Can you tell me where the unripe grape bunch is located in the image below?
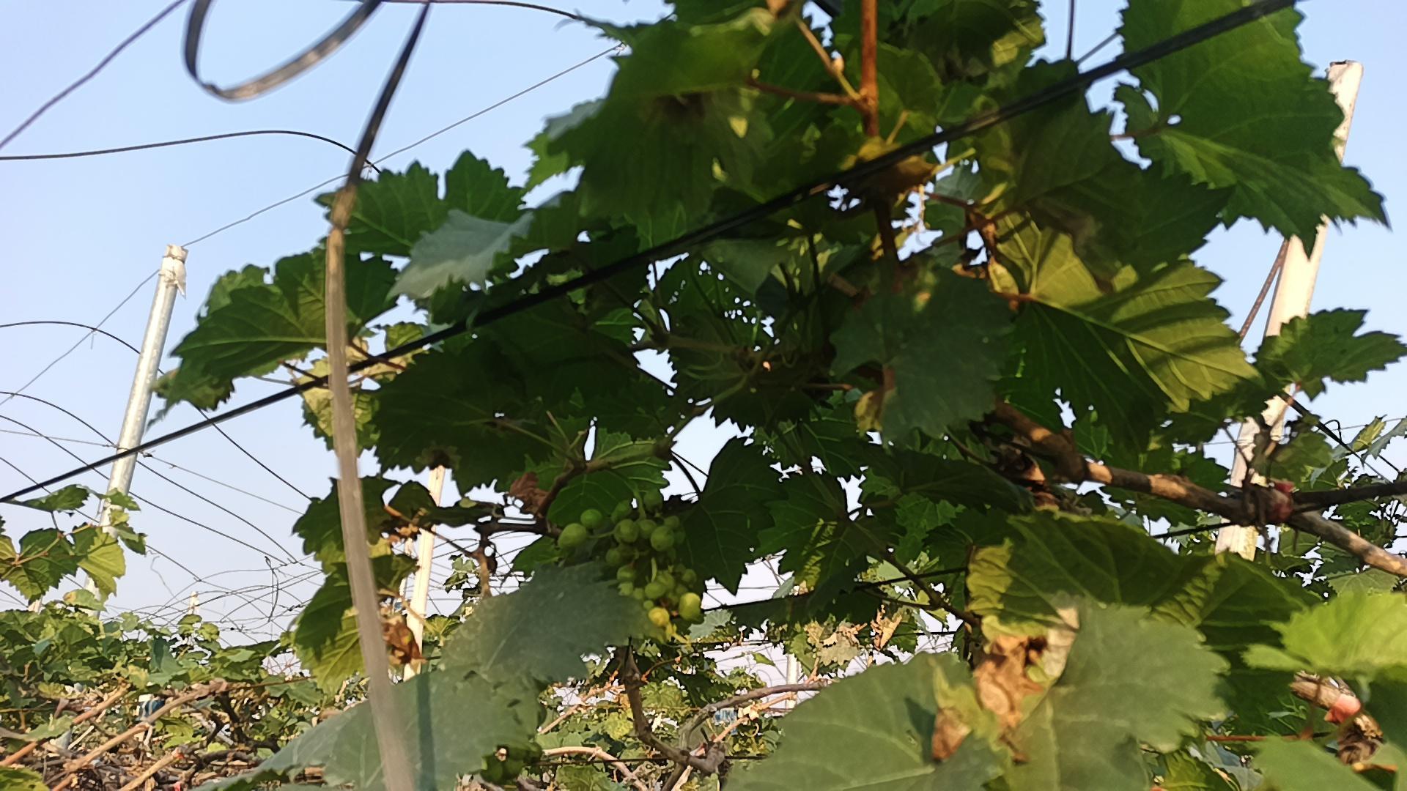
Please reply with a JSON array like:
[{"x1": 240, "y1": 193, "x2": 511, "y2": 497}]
[{"x1": 558, "y1": 490, "x2": 702, "y2": 627}]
